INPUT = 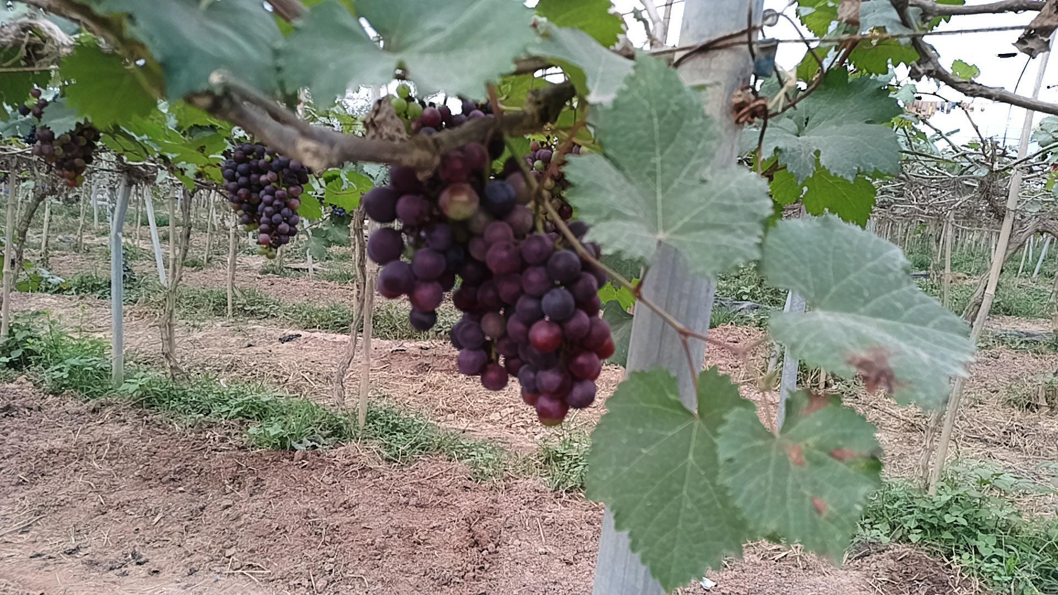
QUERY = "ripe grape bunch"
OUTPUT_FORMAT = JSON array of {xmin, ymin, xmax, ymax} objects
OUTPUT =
[{"xmin": 436, "ymin": 102, "xmax": 613, "ymax": 426}]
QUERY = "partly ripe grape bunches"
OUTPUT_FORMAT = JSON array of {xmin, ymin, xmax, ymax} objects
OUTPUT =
[
  {"xmin": 18, "ymin": 87, "xmax": 100, "ymax": 187},
  {"xmin": 258, "ymin": 148, "xmax": 314, "ymax": 258},
  {"xmin": 366, "ymin": 85, "xmax": 528, "ymax": 387},
  {"xmin": 525, "ymin": 134, "xmax": 592, "ymax": 234},
  {"xmin": 221, "ymin": 142, "xmax": 268, "ymax": 231}
]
